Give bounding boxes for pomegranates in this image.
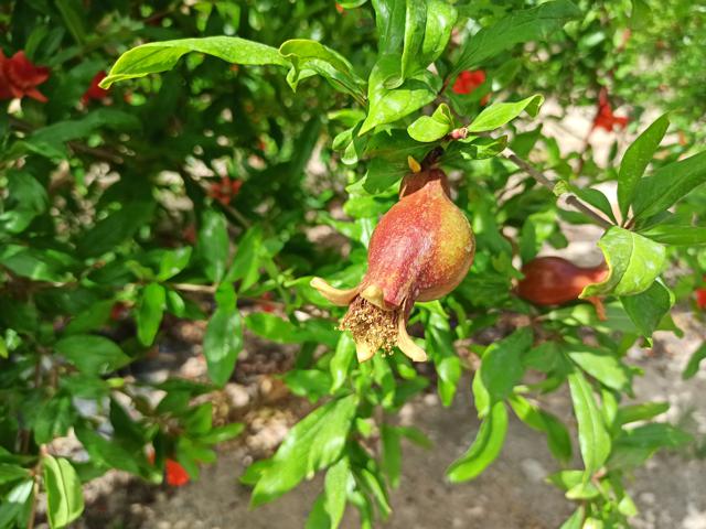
[518,257,609,321]
[310,166,475,363]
